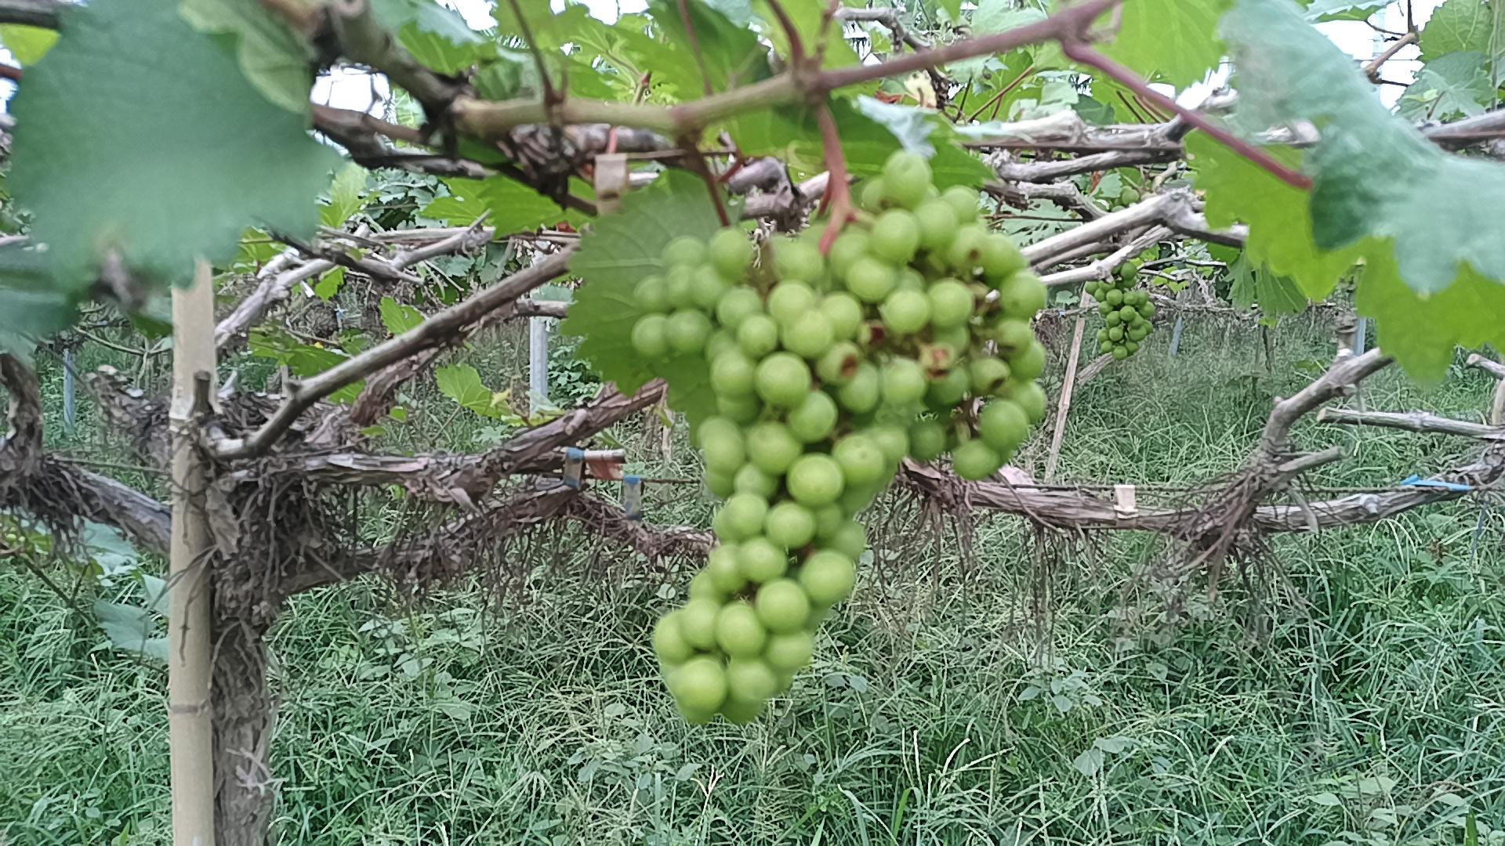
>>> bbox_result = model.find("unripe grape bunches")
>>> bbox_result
[633,150,1043,723]
[1084,264,1155,360]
